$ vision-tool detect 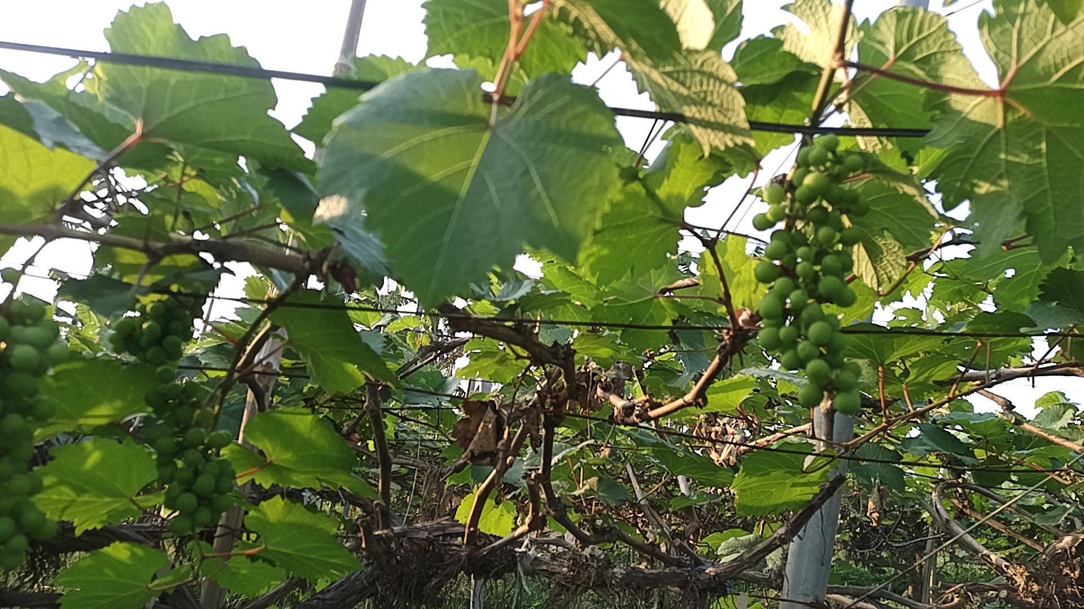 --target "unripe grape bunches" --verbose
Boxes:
[754,135,869,413]
[0,267,66,568]
[143,366,234,535]
[110,298,204,365]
